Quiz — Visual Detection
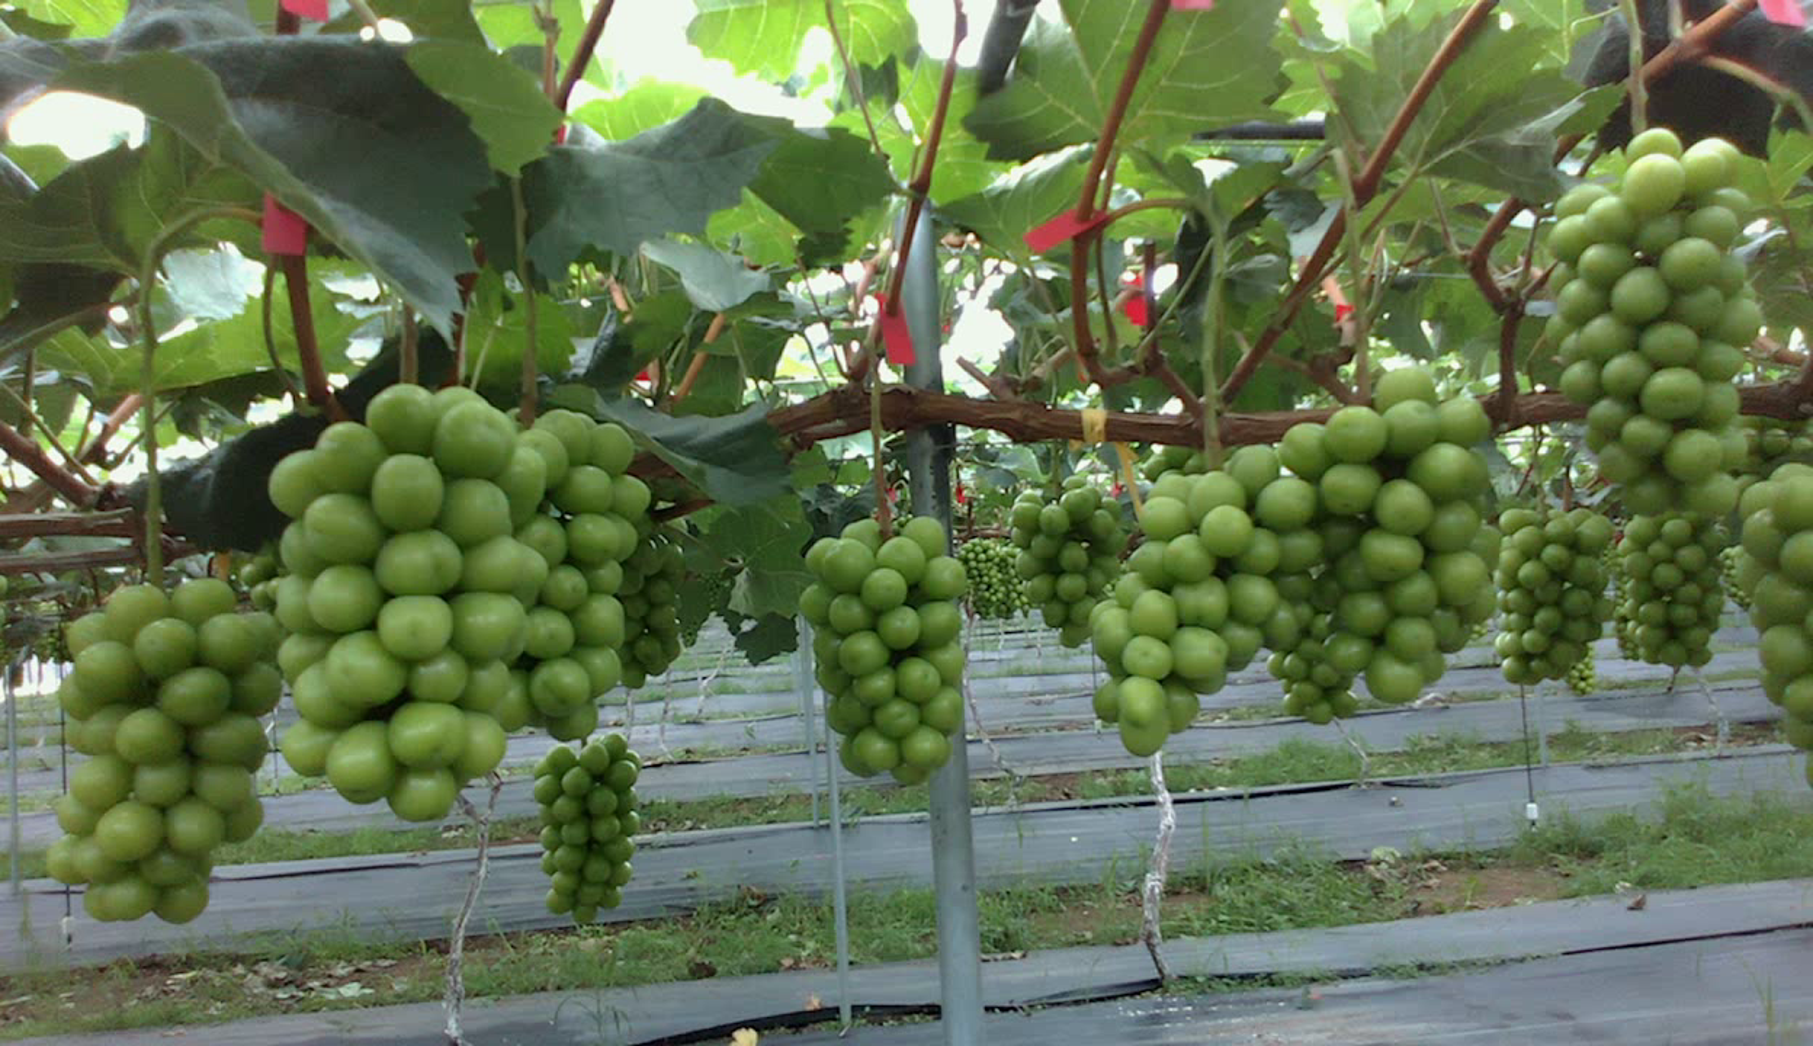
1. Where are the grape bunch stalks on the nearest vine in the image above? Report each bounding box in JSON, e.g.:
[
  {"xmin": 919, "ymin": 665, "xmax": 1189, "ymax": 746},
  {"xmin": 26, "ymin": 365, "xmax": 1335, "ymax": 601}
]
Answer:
[
  {"xmin": 511, "ymin": 180, "xmax": 536, "ymax": 429},
  {"xmin": 1307, "ymin": 150, "xmax": 1370, "ymax": 401},
  {"xmin": 1108, "ymin": 199, "xmax": 1223, "ymax": 468},
  {"xmin": 1620, "ymin": 0, "xmax": 1647, "ymax": 134},
  {"xmin": 138, "ymin": 205, "xmax": 256, "ymax": 585},
  {"xmin": 399, "ymin": 302, "xmax": 415, "ymax": 381},
  {"xmin": 863, "ymin": 318, "xmax": 895, "ymax": 538}
]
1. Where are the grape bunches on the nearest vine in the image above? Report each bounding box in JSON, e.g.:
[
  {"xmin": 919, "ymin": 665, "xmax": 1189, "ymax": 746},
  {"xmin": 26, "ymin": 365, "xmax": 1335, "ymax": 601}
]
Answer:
[
  {"xmin": 798, "ymin": 514, "xmax": 968, "ymax": 787},
  {"xmin": 267, "ymin": 385, "xmax": 549, "ymax": 821},
  {"xmin": 1546, "ymin": 128, "xmax": 1761, "ymax": 520},
  {"xmin": 1280, "ymin": 368, "xmax": 1501, "ymax": 706},
  {"xmin": 511, "ymin": 408, "xmax": 649, "ymax": 741},
  {"xmin": 44, "ymin": 578, "xmax": 285, "ymax": 923},
  {"xmin": 1090, "ymin": 443, "xmax": 1321, "ymax": 757}
]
